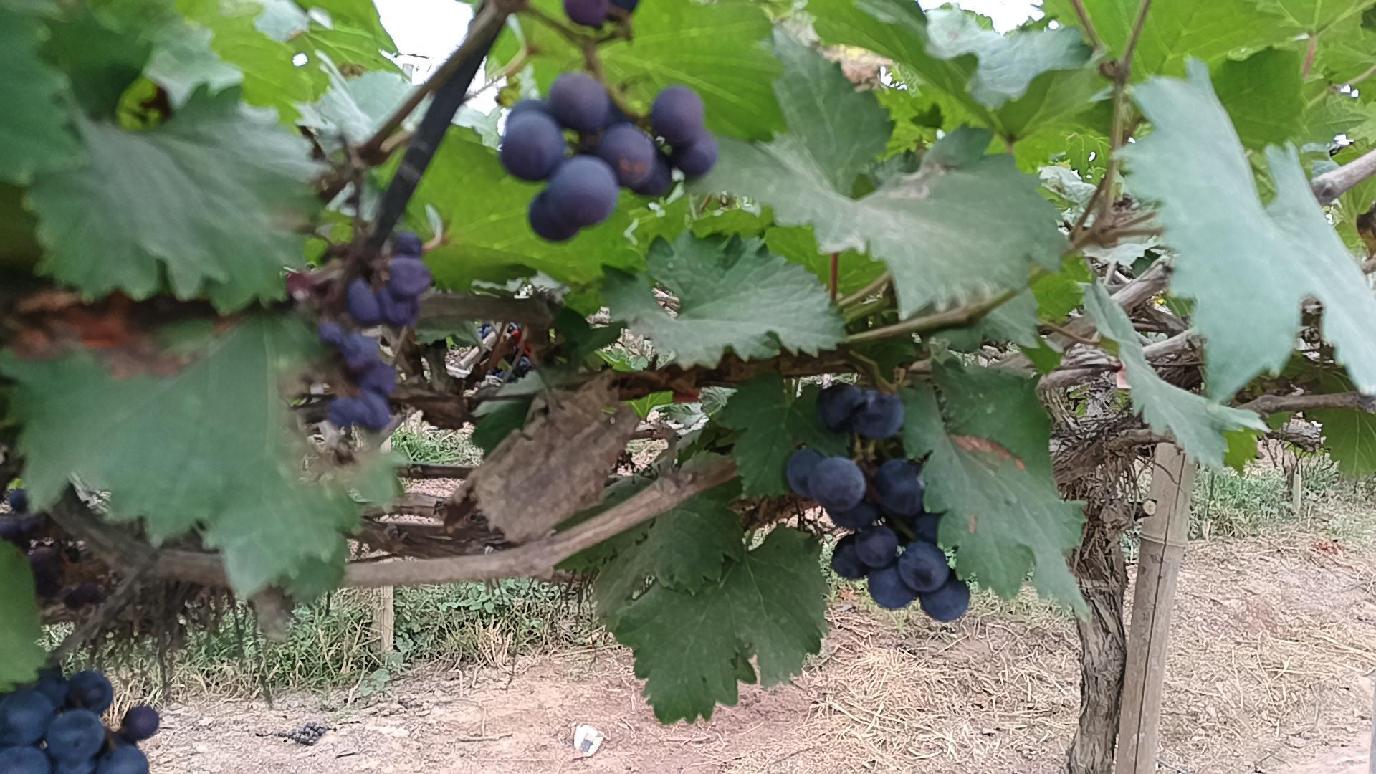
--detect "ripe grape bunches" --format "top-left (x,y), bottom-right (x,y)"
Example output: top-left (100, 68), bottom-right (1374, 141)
top-left (786, 382), bottom-right (969, 621)
top-left (0, 487), bottom-right (113, 621)
top-left (474, 320), bottom-right (534, 383)
top-left (500, 0), bottom-right (718, 242)
top-left (319, 232), bottom-right (432, 429)
top-left (0, 665), bottom-right (160, 773)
